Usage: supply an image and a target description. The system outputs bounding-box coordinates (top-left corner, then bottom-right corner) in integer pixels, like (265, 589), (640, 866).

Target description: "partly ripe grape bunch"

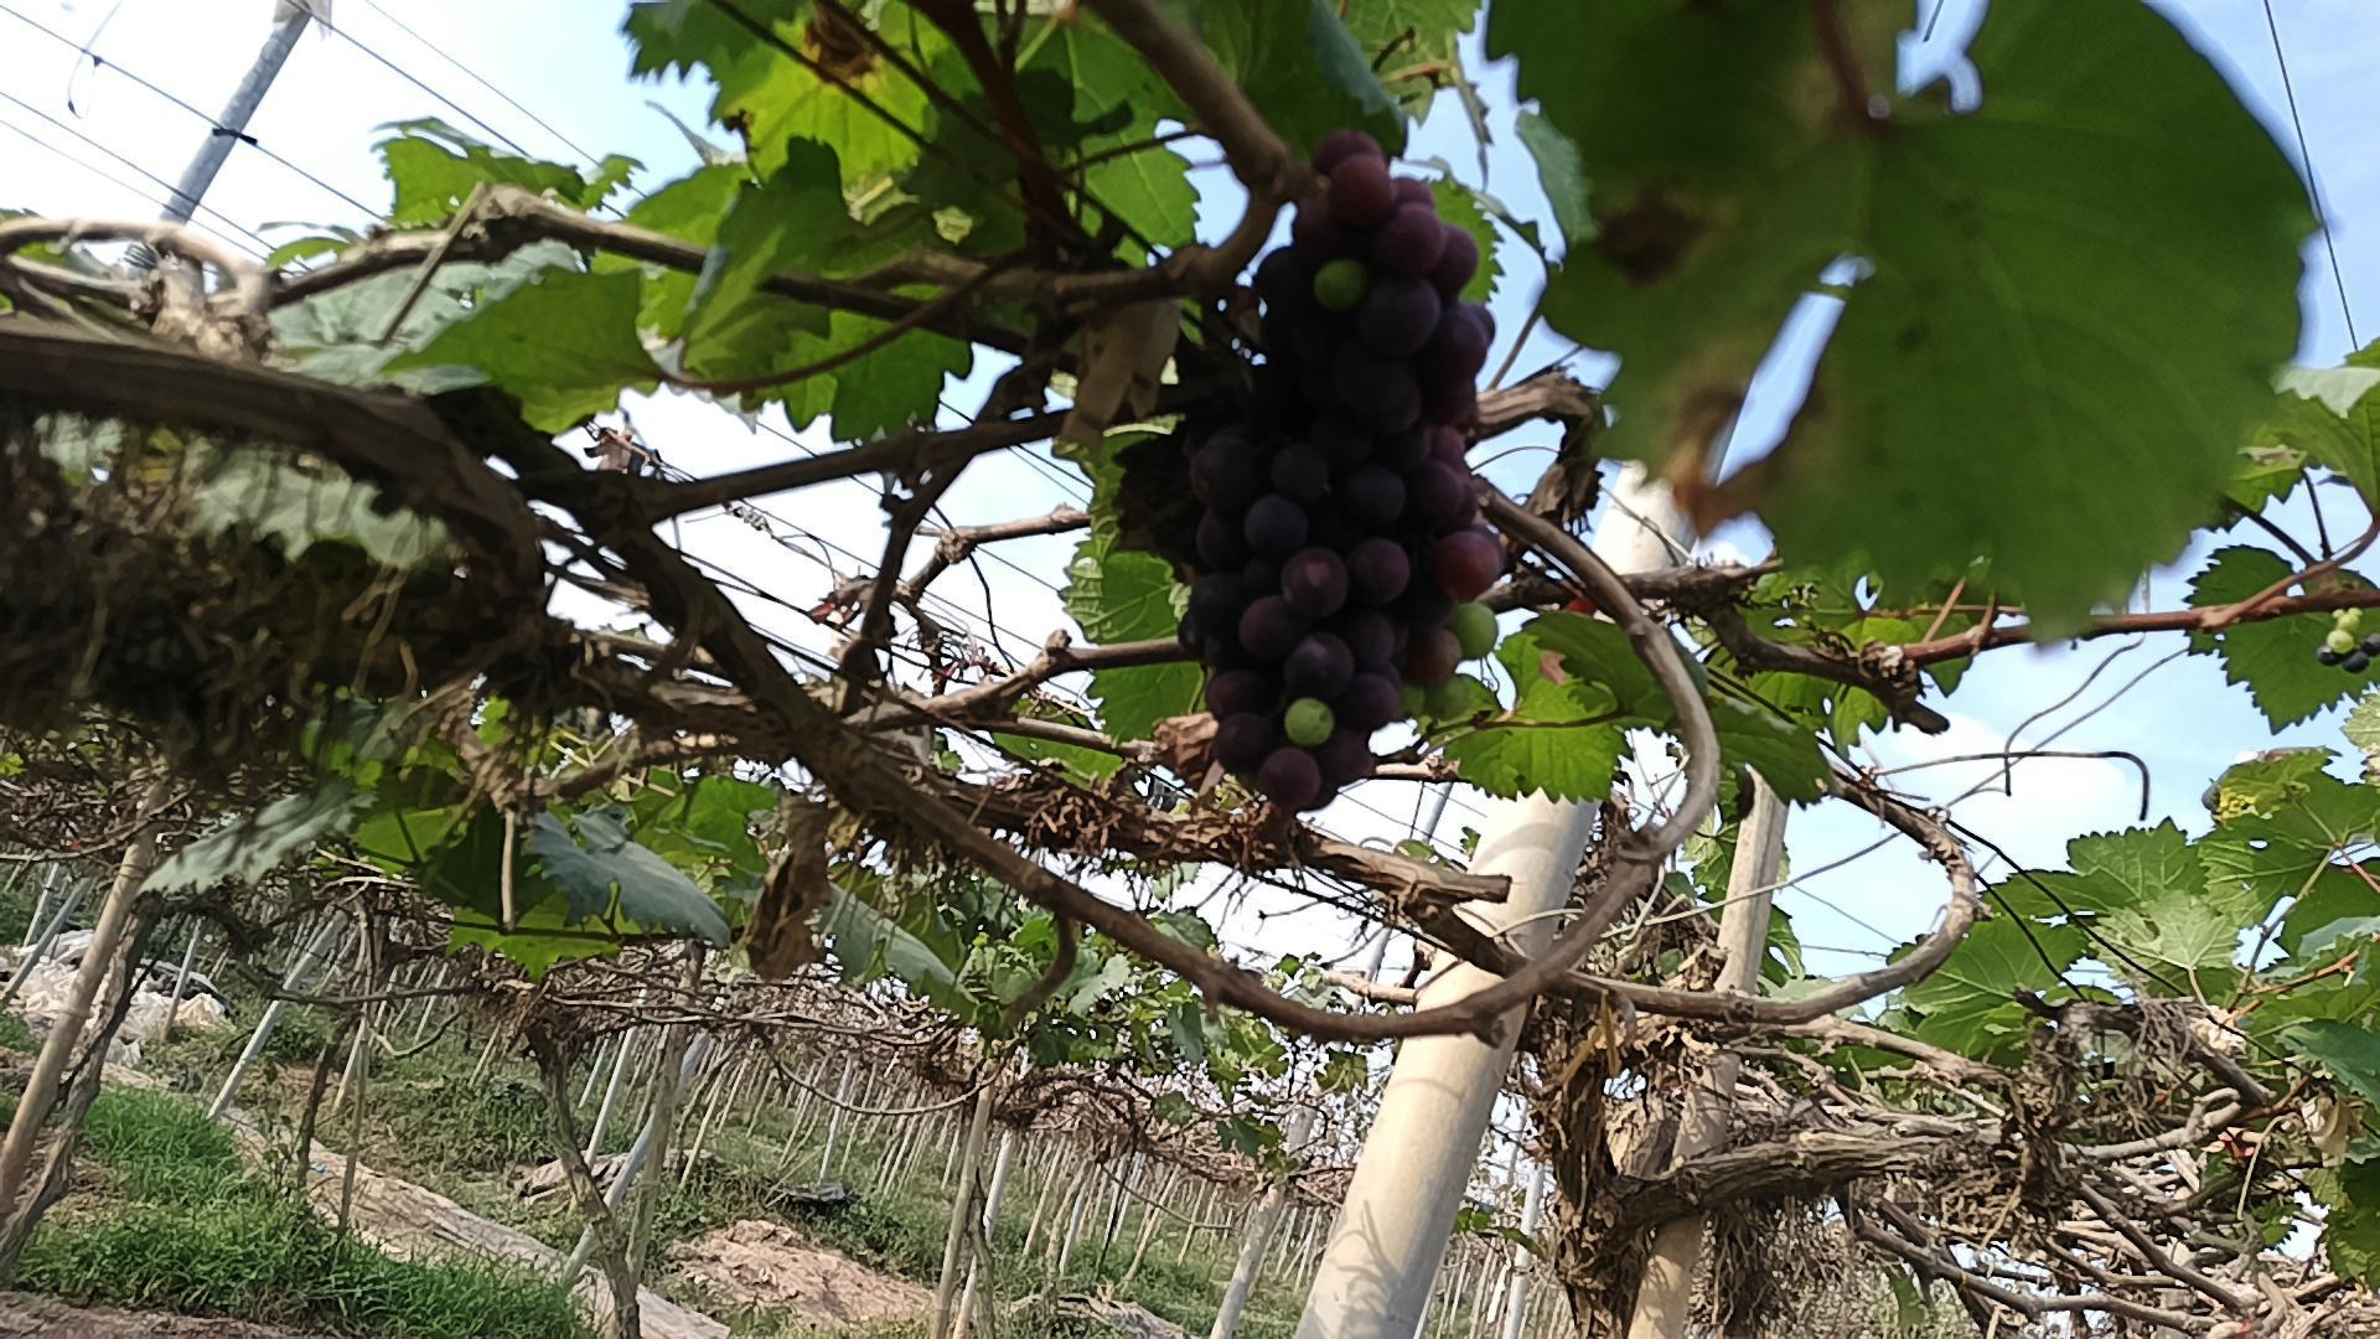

(1180, 133), (1504, 810)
